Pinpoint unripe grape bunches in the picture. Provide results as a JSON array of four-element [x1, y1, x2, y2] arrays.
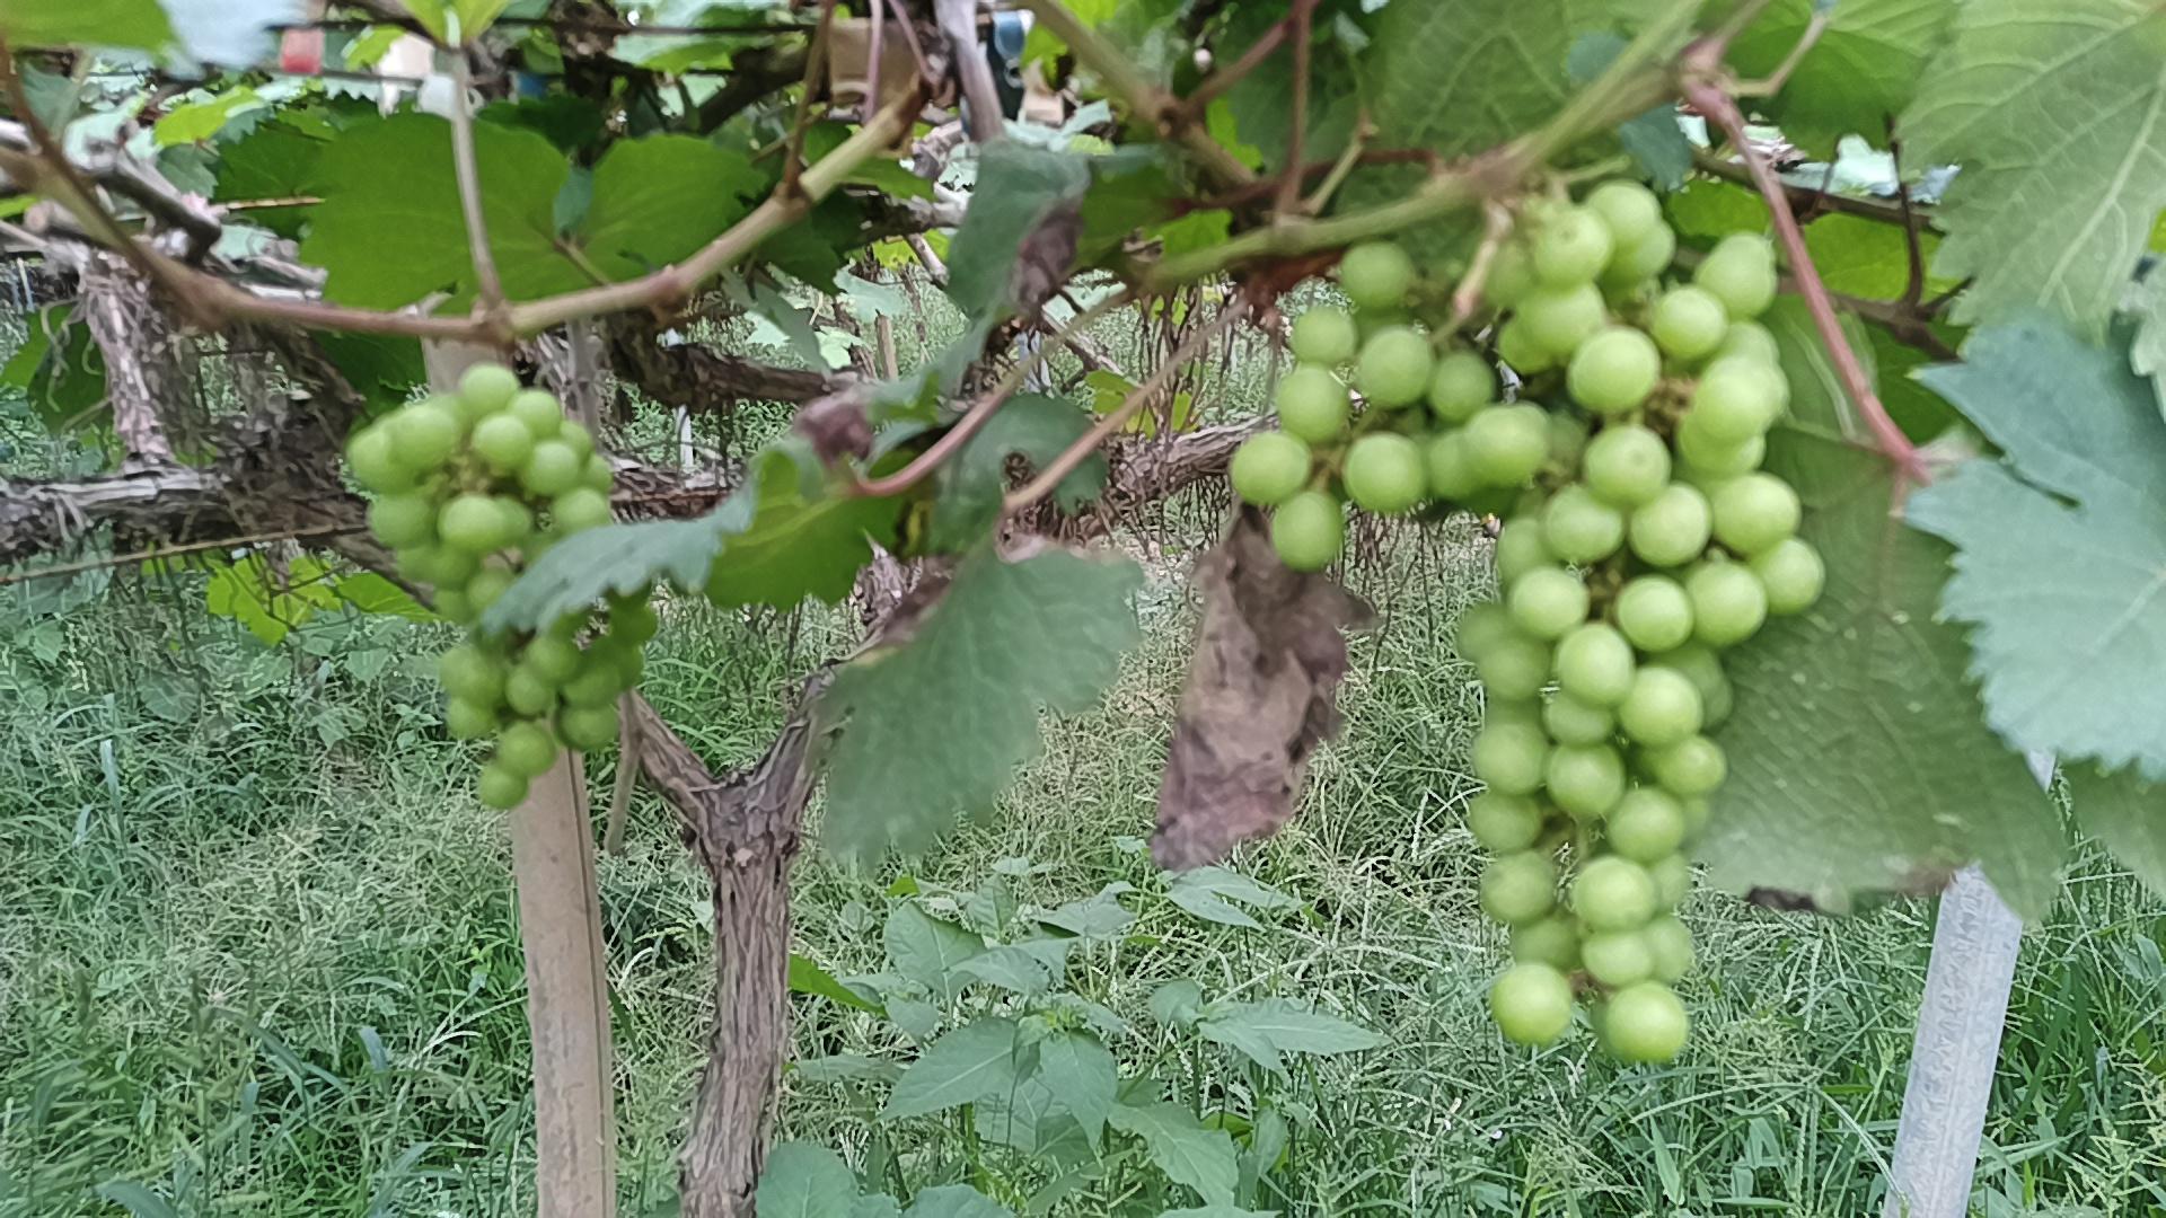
[[1456, 176, 1829, 1067], [347, 365, 662, 809], [1229, 240, 1495, 566]]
